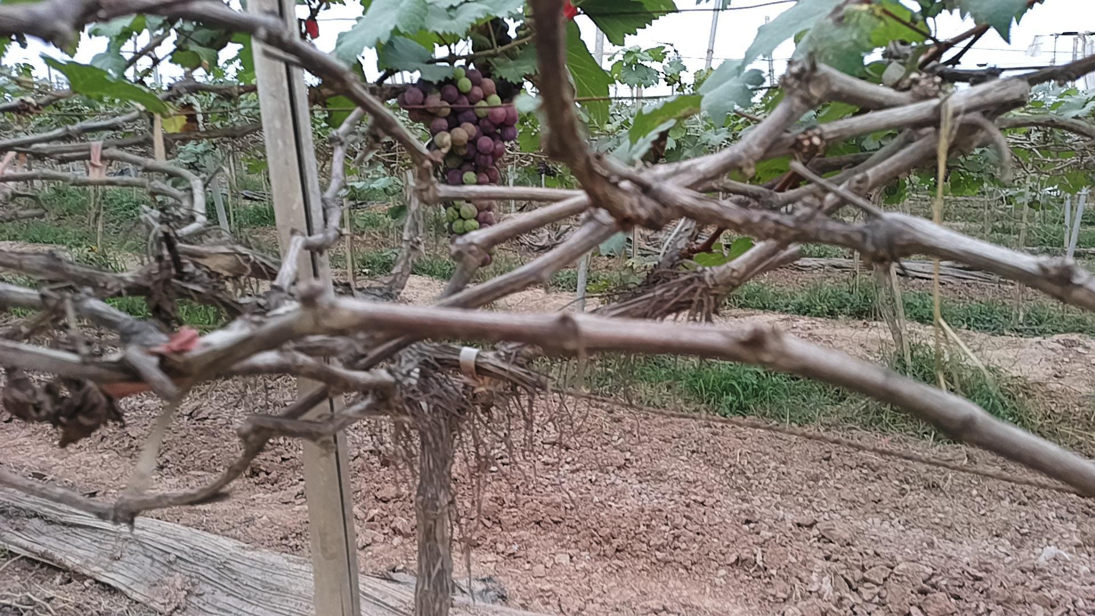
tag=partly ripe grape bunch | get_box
[398,63,521,266]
